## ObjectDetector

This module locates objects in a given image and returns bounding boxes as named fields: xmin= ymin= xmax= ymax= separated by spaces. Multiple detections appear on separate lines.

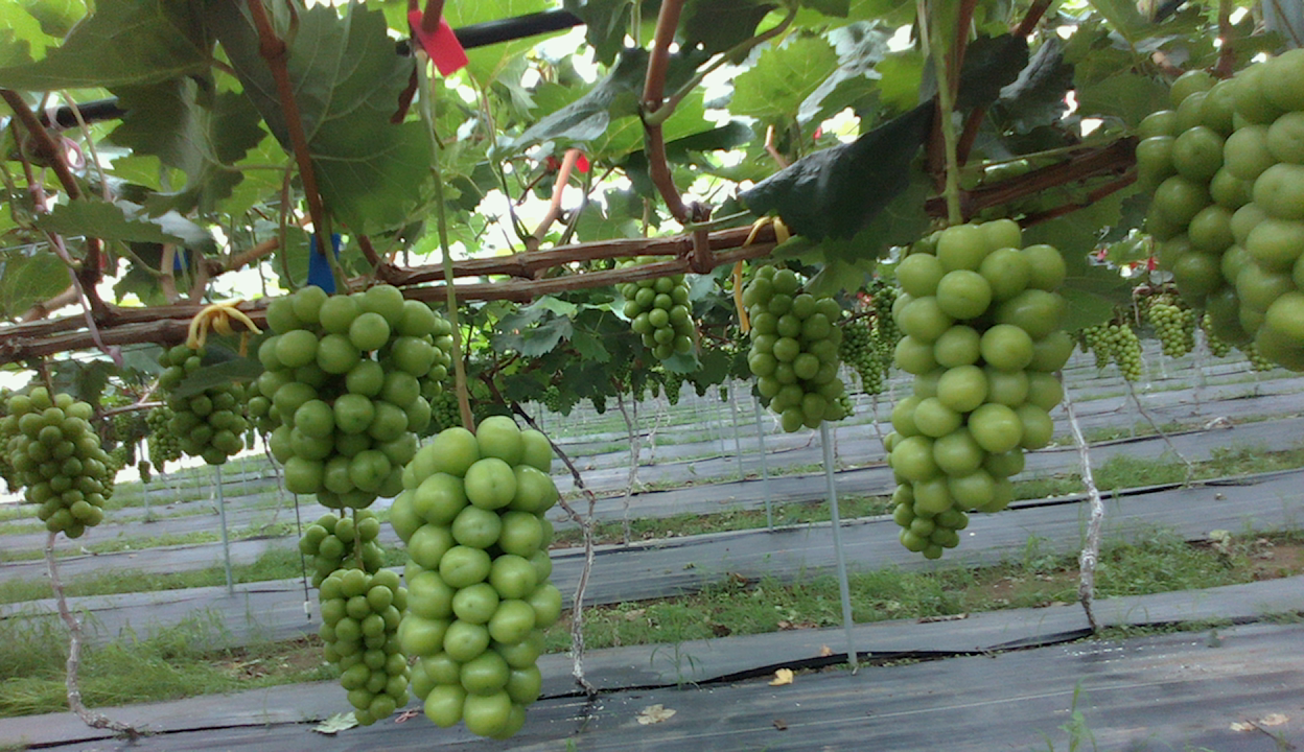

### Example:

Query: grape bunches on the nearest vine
xmin=389 ymin=414 xmax=561 ymax=741
xmin=257 ymin=285 xmax=435 ymax=508
xmin=1138 ymin=69 xmax=1248 ymax=350
xmin=1221 ymin=49 xmax=1302 ymax=372
xmin=888 ymin=220 xmax=1077 ymax=514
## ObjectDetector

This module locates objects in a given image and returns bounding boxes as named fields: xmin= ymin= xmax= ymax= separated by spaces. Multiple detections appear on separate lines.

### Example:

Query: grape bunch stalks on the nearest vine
xmin=1212 ymin=1 xmax=1233 ymax=77
xmin=413 ymin=55 xmax=474 ymax=429
xmin=323 ymin=205 xmax=345 ymax=293
xmin=927 ymin=3 xmax=962 ymax=224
